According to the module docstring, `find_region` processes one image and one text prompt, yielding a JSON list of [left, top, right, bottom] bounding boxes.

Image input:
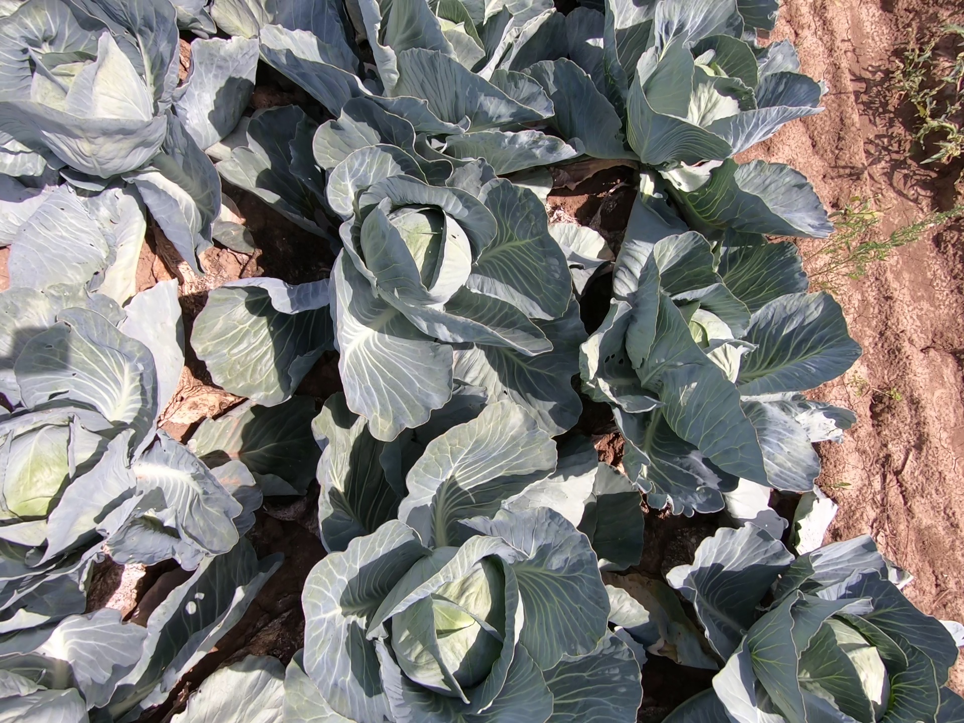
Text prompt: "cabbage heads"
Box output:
[[29, 56, 142, 165], [363, 199, 470, 305], [791, 606, 890, 720], [2, 426, 133, 546], [664, 308, 741, 391], [388, 10, 475, 98], [391, 547, 522, 695], [650, 59, 740, 141]]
